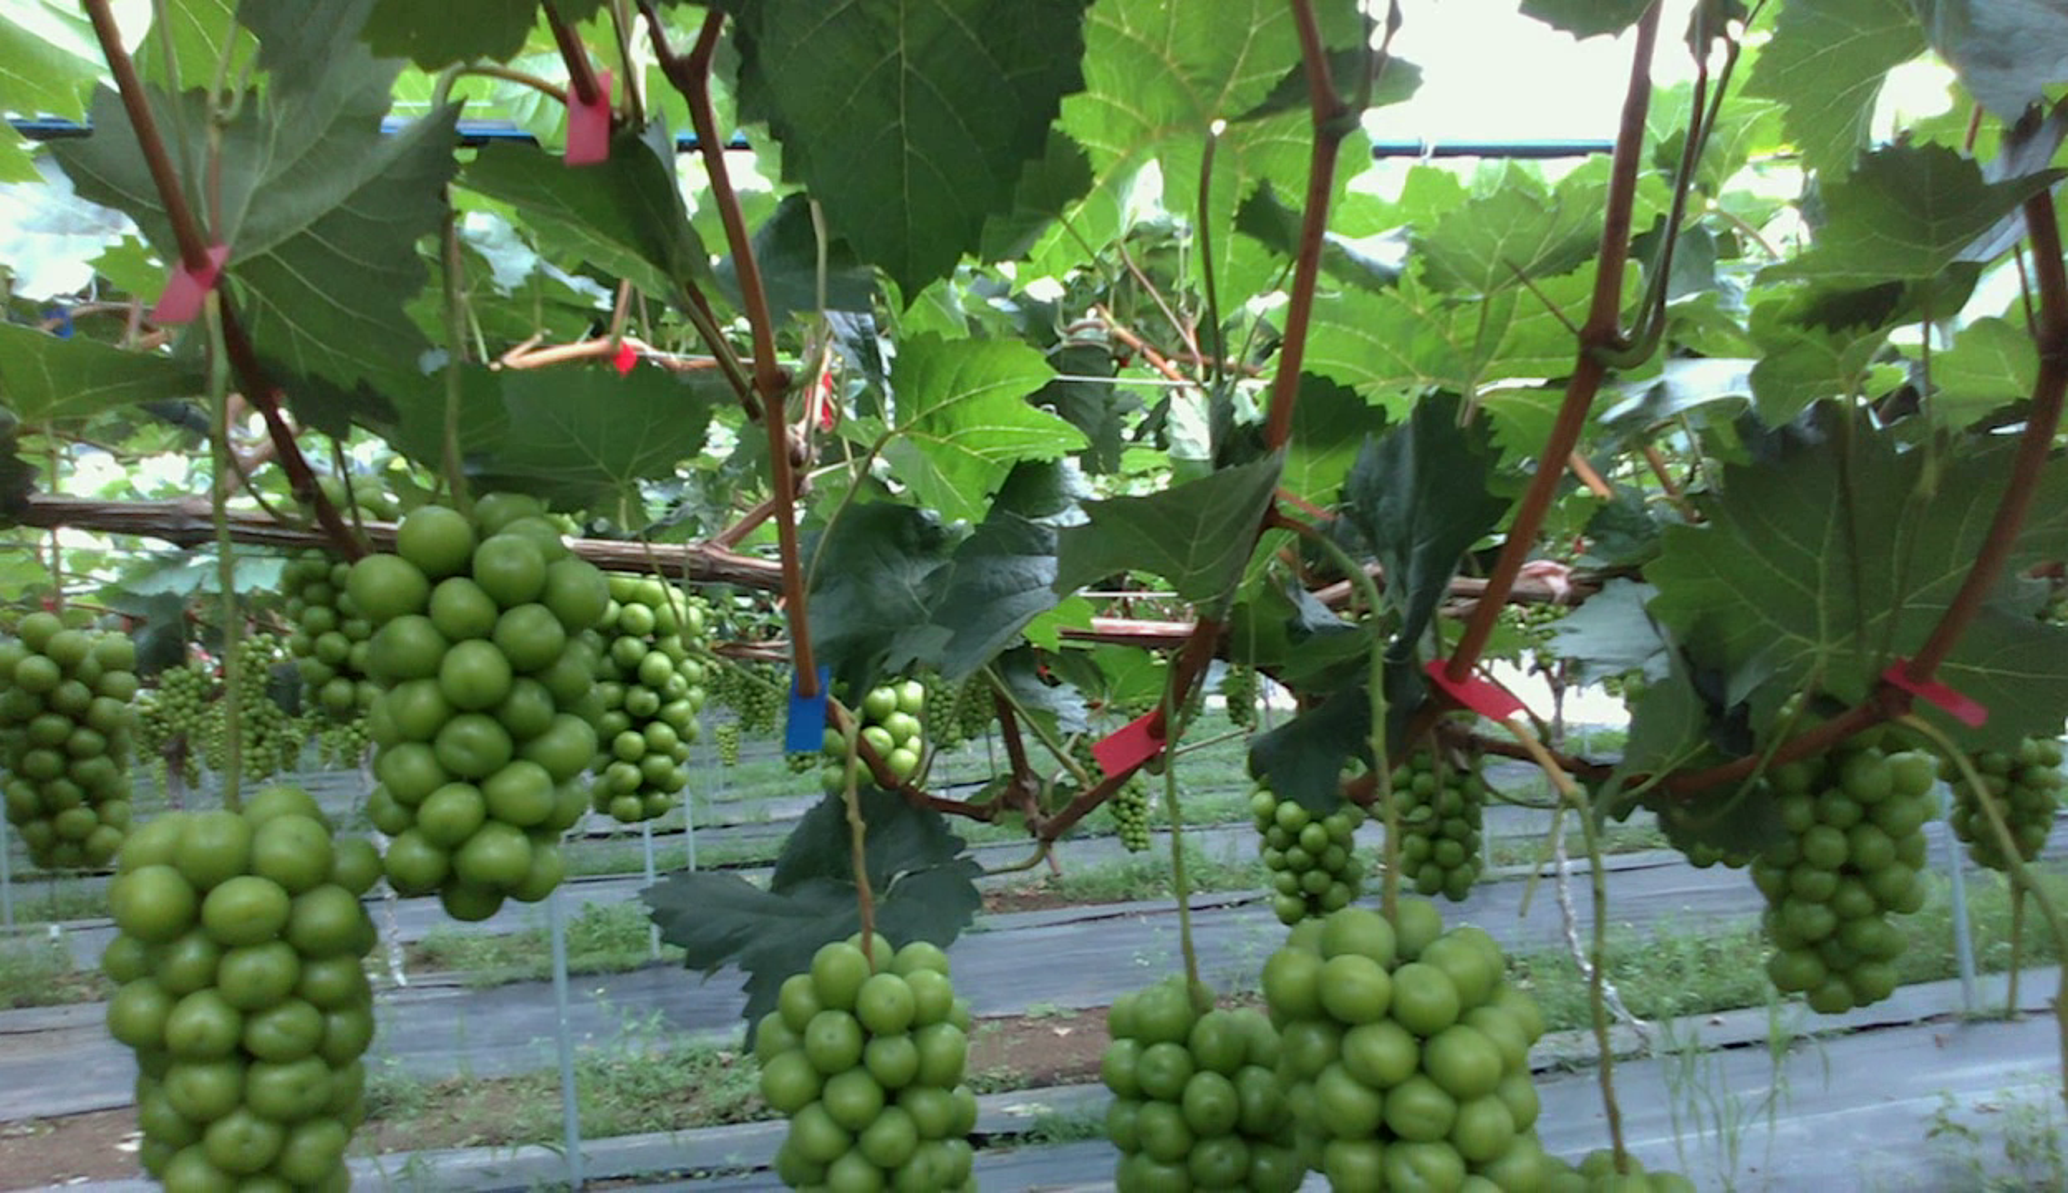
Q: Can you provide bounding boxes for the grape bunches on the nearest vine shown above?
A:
[1549,1150,1697,1191]
[343,490,608,923]
[752,931,978,1191]
[1261,900,1551,1191]
[1100,974,1306,1191]
[104,784,381,1191]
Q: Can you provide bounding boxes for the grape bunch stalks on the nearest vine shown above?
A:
[1263,505,1400,933]
[431,63,567,532]
[202,288,242,810]
[1501,717,1631,1175]
[829,694,877,976]
[1165,643,1208,1021]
